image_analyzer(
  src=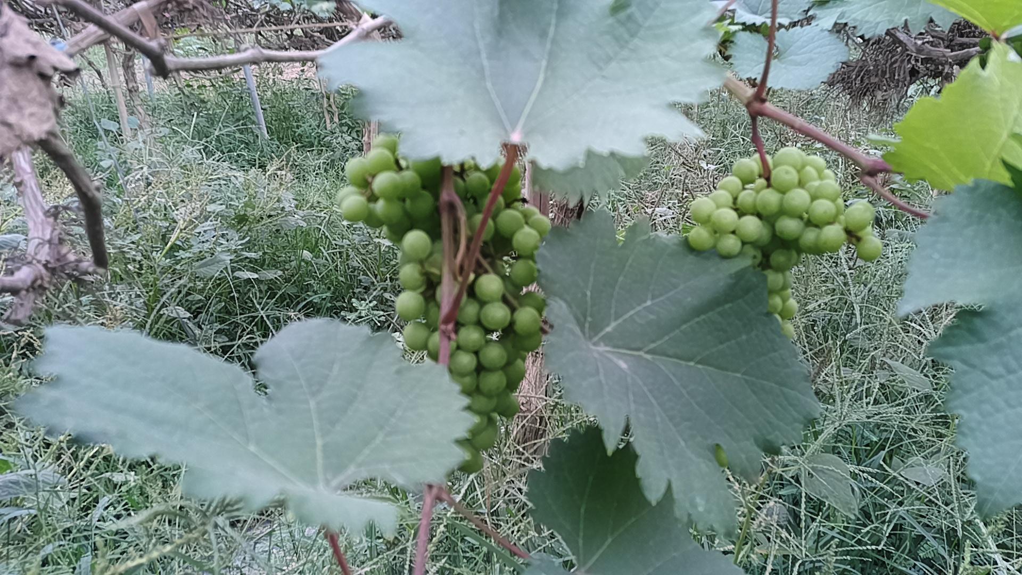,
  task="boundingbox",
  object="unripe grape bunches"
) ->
[686,147,881,338]
[339,135,549,473]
